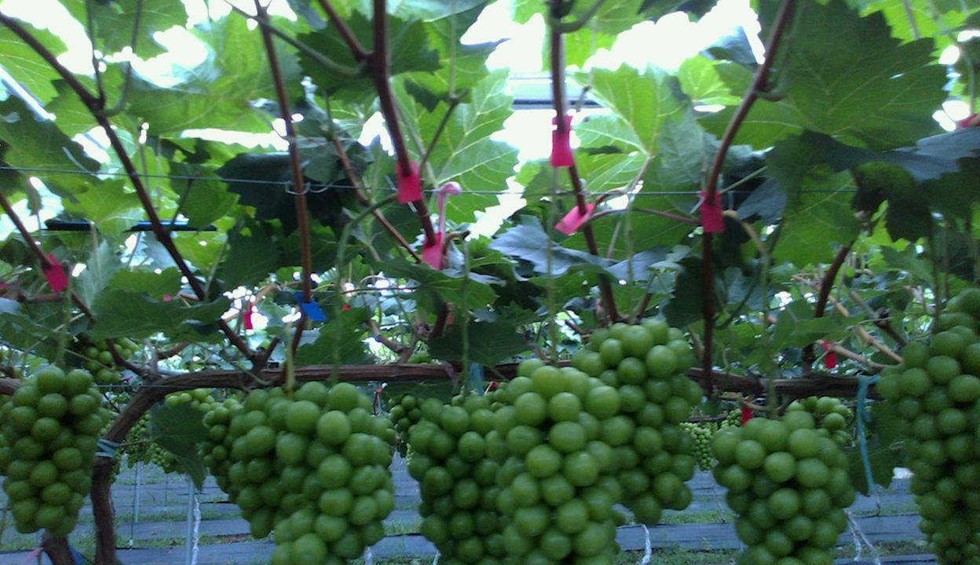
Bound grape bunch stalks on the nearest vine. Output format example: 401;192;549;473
546;167;558;364
283;321;297;399
742;222;777;420
624;195;637;323
57;264;72;368
929;236;940;329
329;193;395;384
448;230;471;400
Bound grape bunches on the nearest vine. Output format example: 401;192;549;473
713;412;855;564
270;381;393;564
404;395;514;564
0;365;108;538
571;315;701;525
226;387;309;541
485;357;631;564
879;325;979;564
